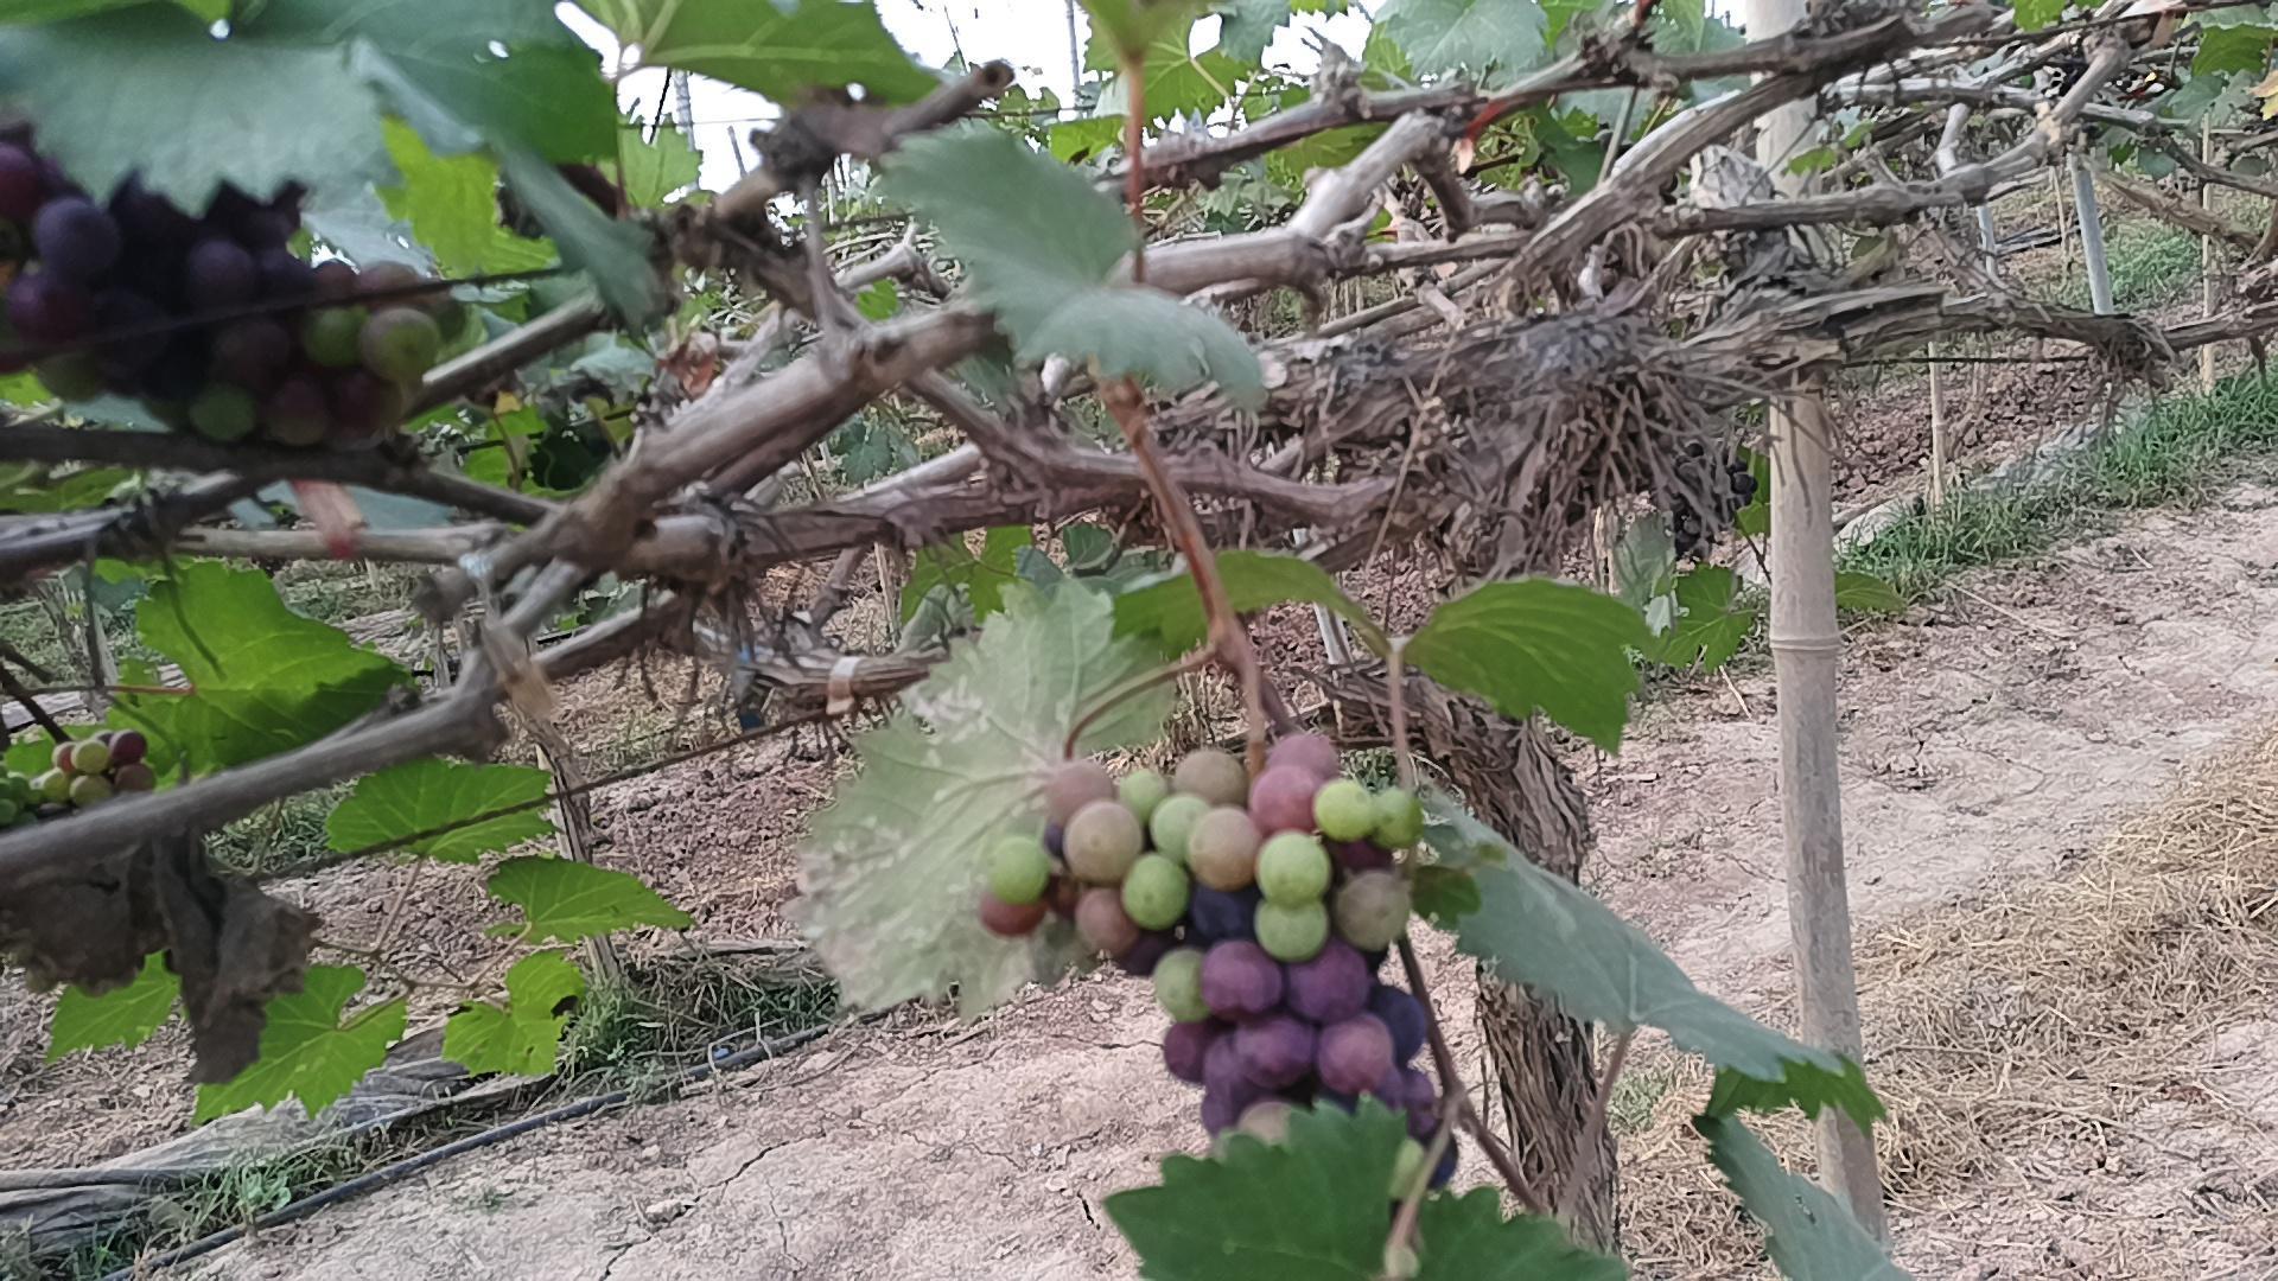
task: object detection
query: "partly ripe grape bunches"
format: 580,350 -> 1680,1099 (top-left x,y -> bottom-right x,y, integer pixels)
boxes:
979,733 -> 1458,1190
0,729 -> 157,830
0,123 -> 466,446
